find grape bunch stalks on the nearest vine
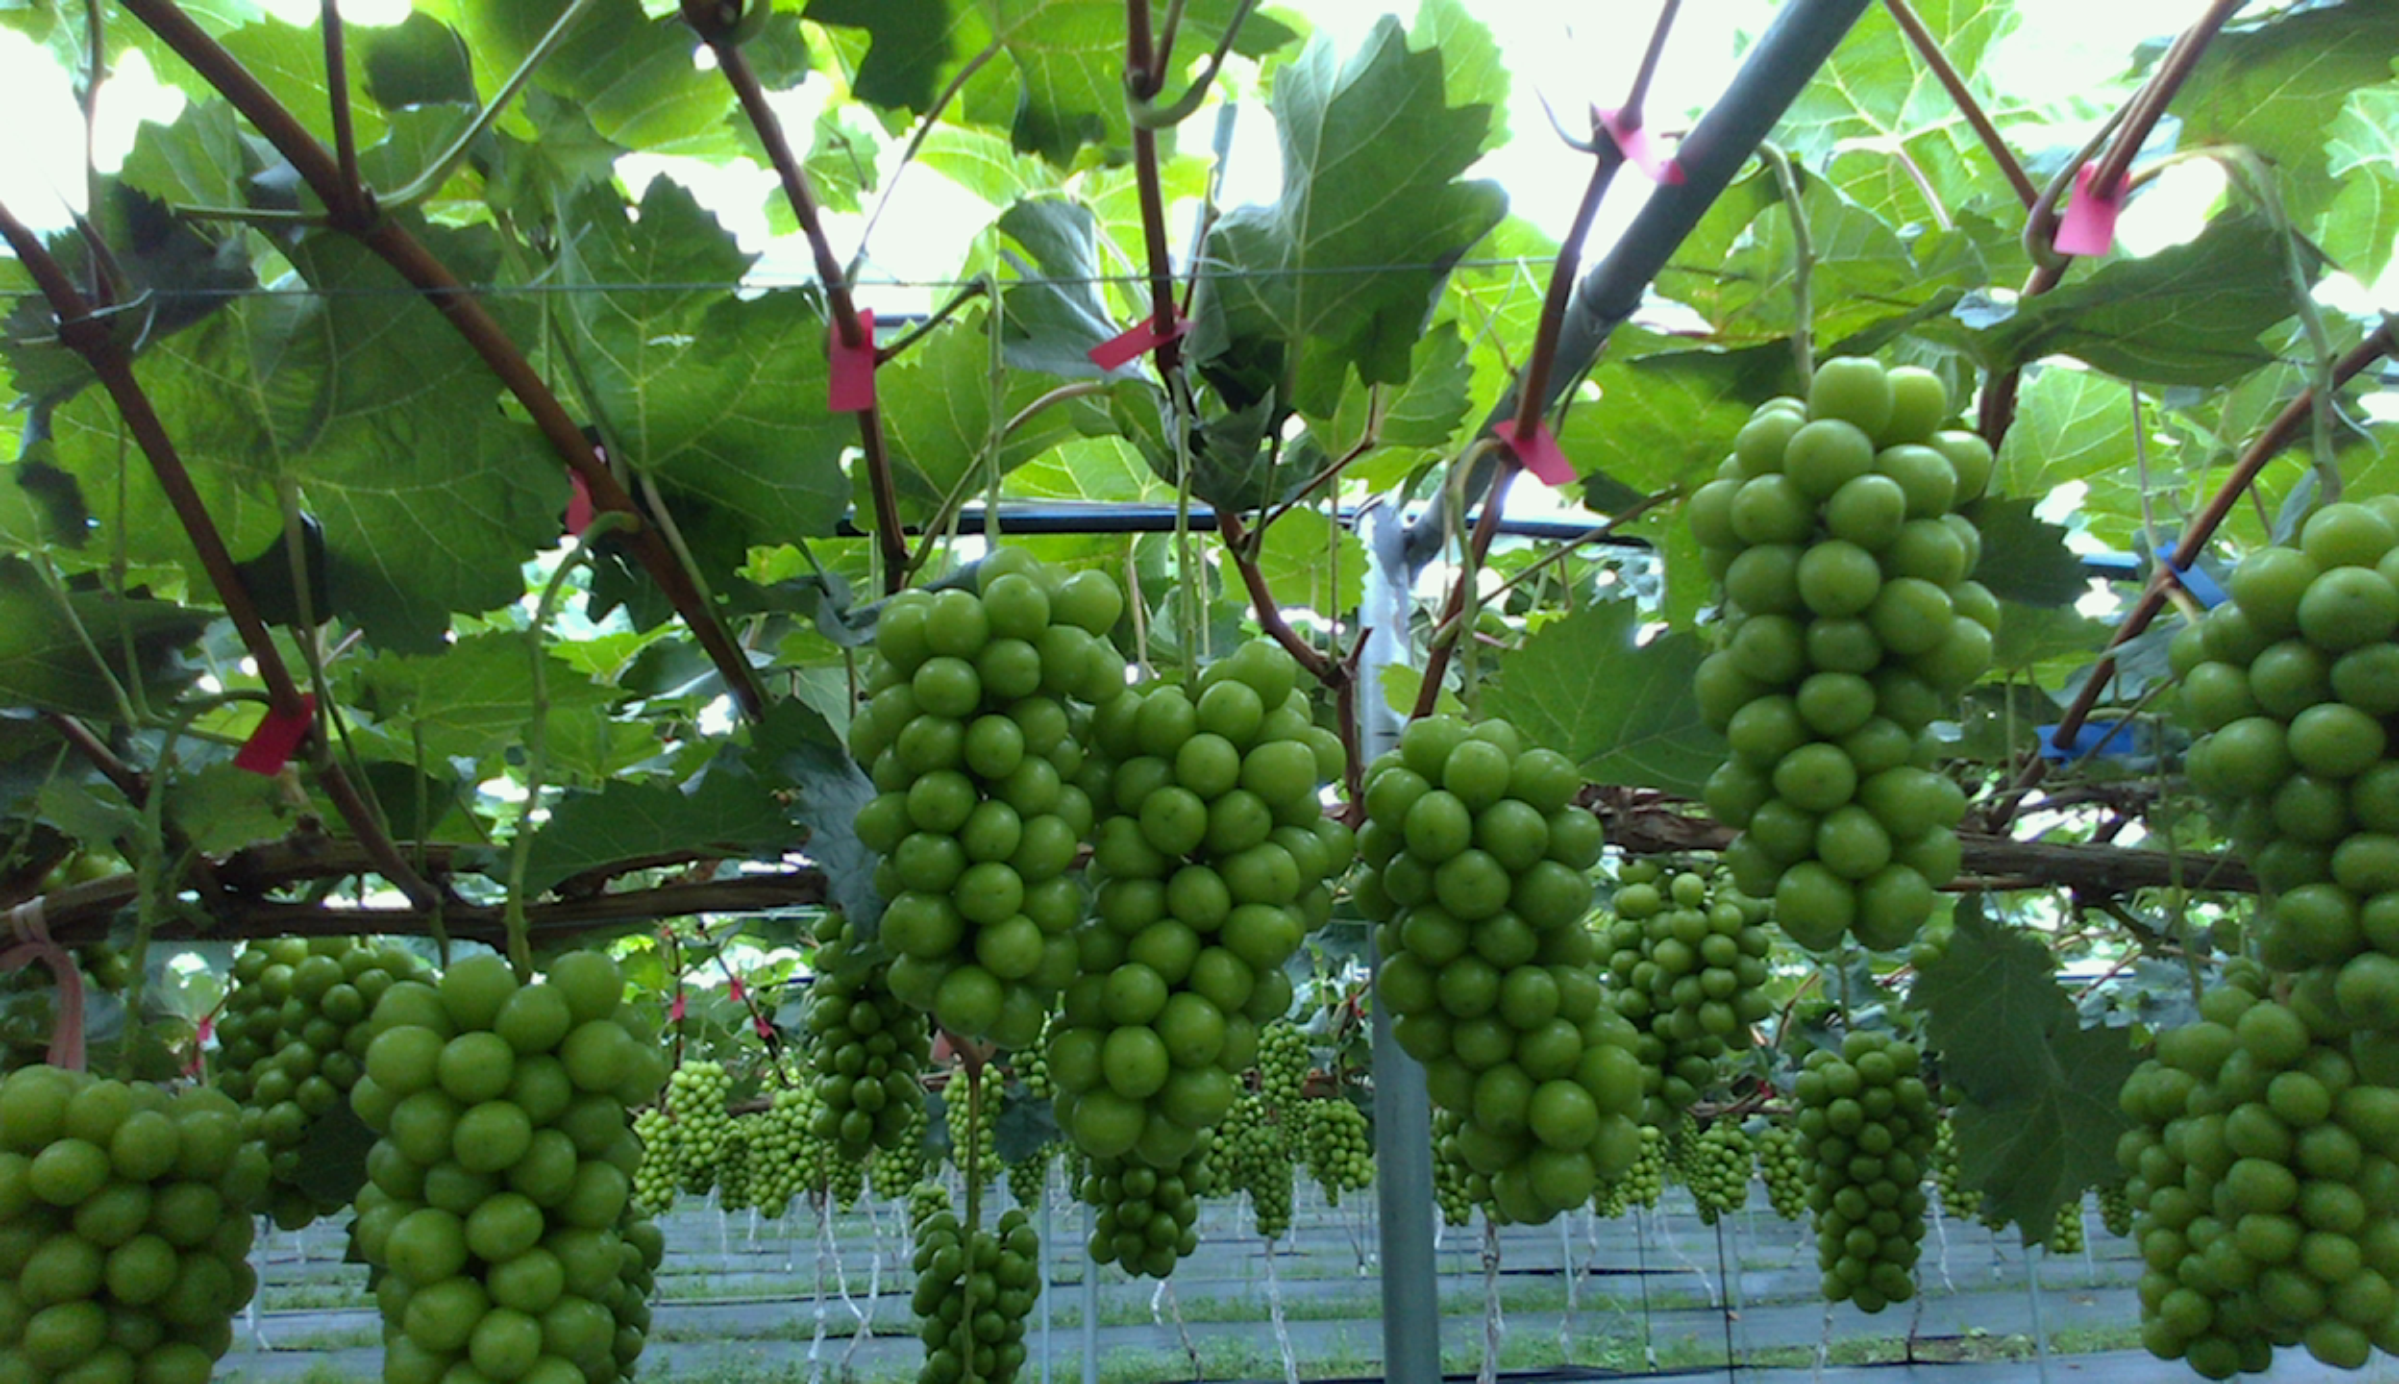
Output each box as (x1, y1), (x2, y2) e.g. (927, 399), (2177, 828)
(2128, 146), (2339, 500)
(507, 513), (623, 984)
(1173, 373), (1198, 686)
(878, 271), (1003, 550)
(2272, 975), (2288, 1001)
(1759, 142), (1815, 390)
(117, 686), (269, 1078)
(2138, 709), (2201, 996)
(1451, 436), (1496, 717)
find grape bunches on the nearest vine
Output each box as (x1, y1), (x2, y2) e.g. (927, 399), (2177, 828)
(1351, 713), (1642, 1228)
(2184, 1005), (2397, 1367)
(848, 550), (1126, 1050)
(1686, 356), (1999, 955)
(1044, 642), (1355, 1167)
(2166, 496), (2397, 1084)
(2118, 982), (2291, 1380)
(0, 1065), (271, 1382)
(348, 948), (663, 1382)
